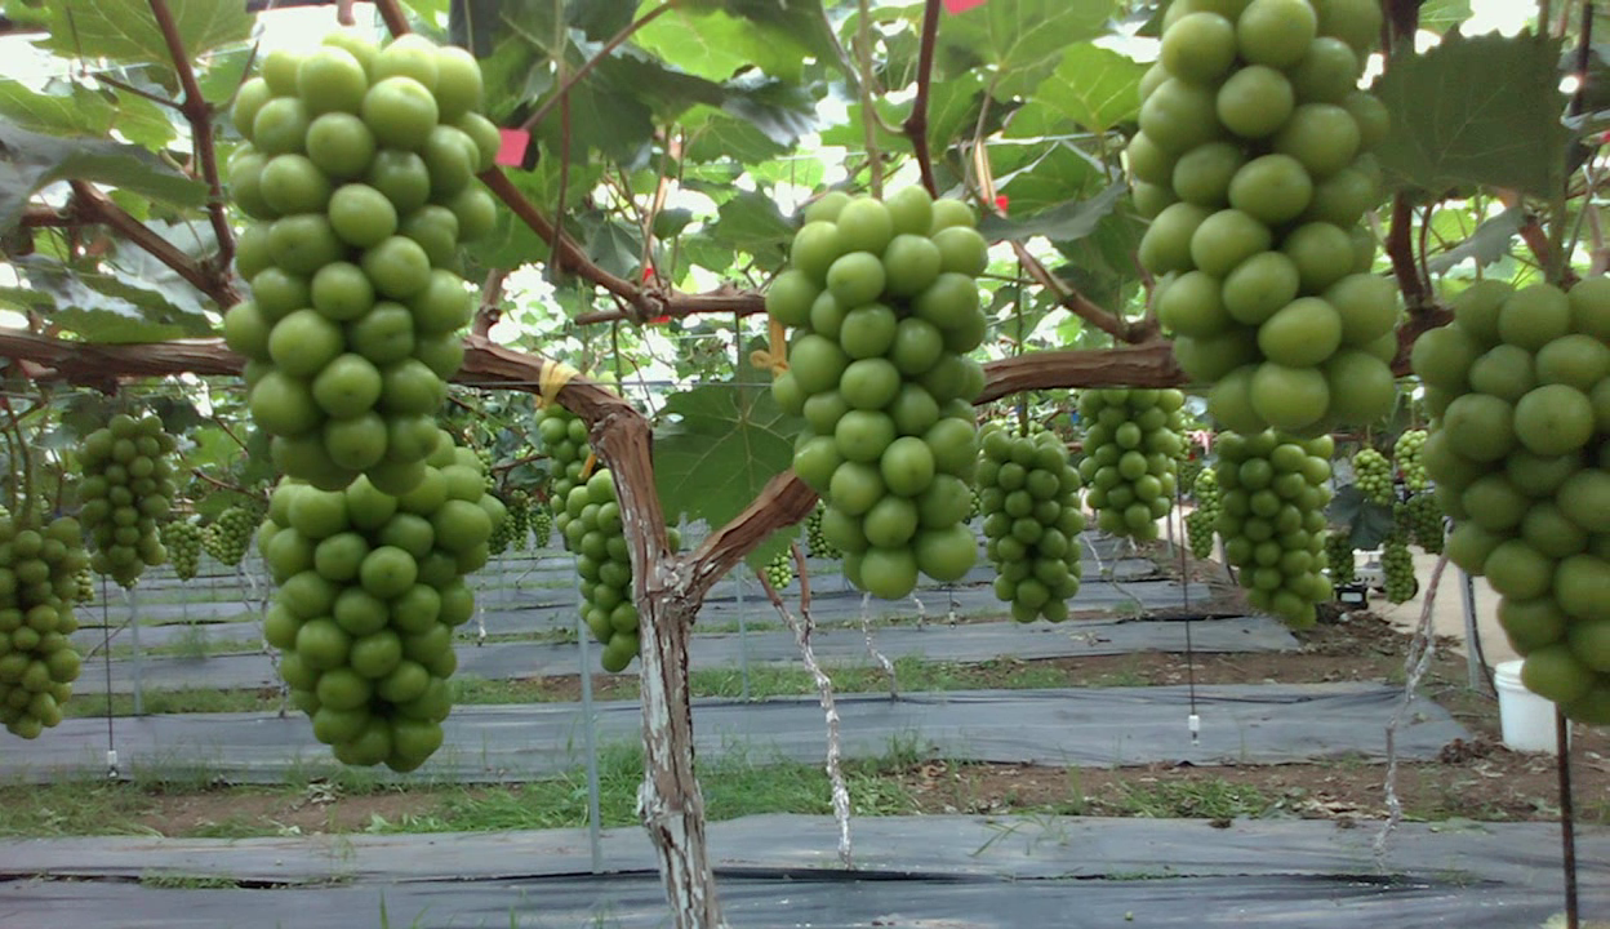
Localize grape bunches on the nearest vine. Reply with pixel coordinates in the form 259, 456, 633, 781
255, 430, 506, 773
1128, 0, 1397, 440
1414, 275, 1609, 728
223, 25, 502, 497
765, 182, 989, 601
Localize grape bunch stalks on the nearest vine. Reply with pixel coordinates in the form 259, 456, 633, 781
1545, 182, 1566, 285
858, 1, 886, 203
